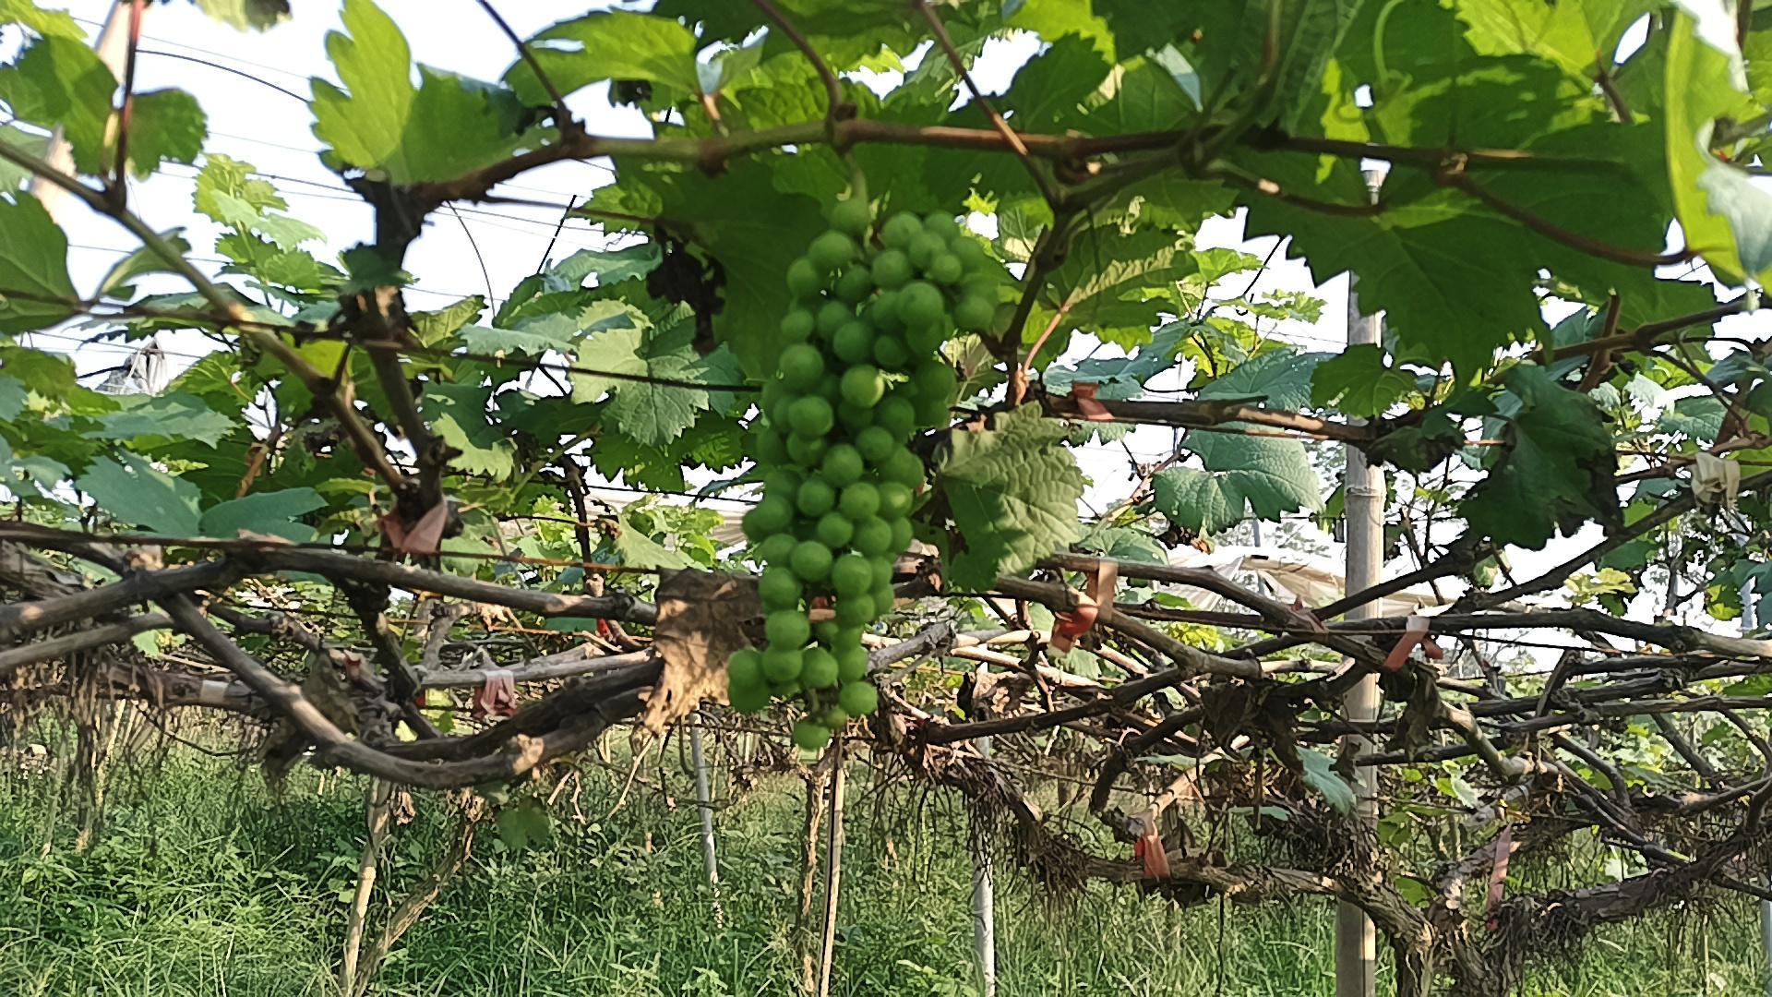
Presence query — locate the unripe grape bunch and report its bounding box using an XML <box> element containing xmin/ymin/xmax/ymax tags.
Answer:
<box><xmin>728</xmin><ymin>198</ymin><xmax>999</xmax><ymax>749</ymax></box>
